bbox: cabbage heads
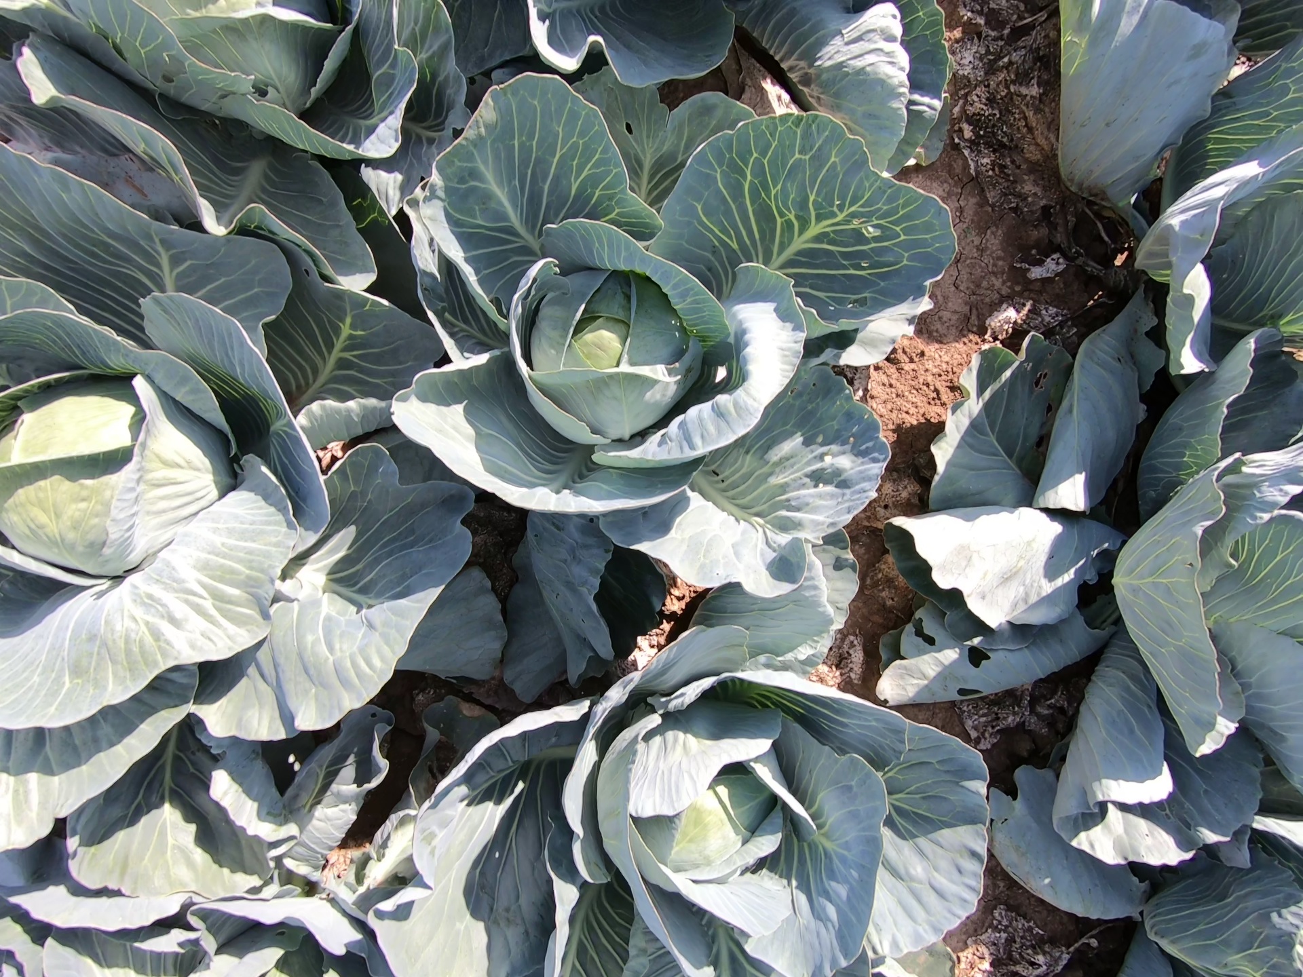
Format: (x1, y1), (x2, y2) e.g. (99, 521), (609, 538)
(621, 708), (782, 892)
(81, 4), (324, 96)
(530, 265), (686, 425)
(3, 381), (211, 572)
